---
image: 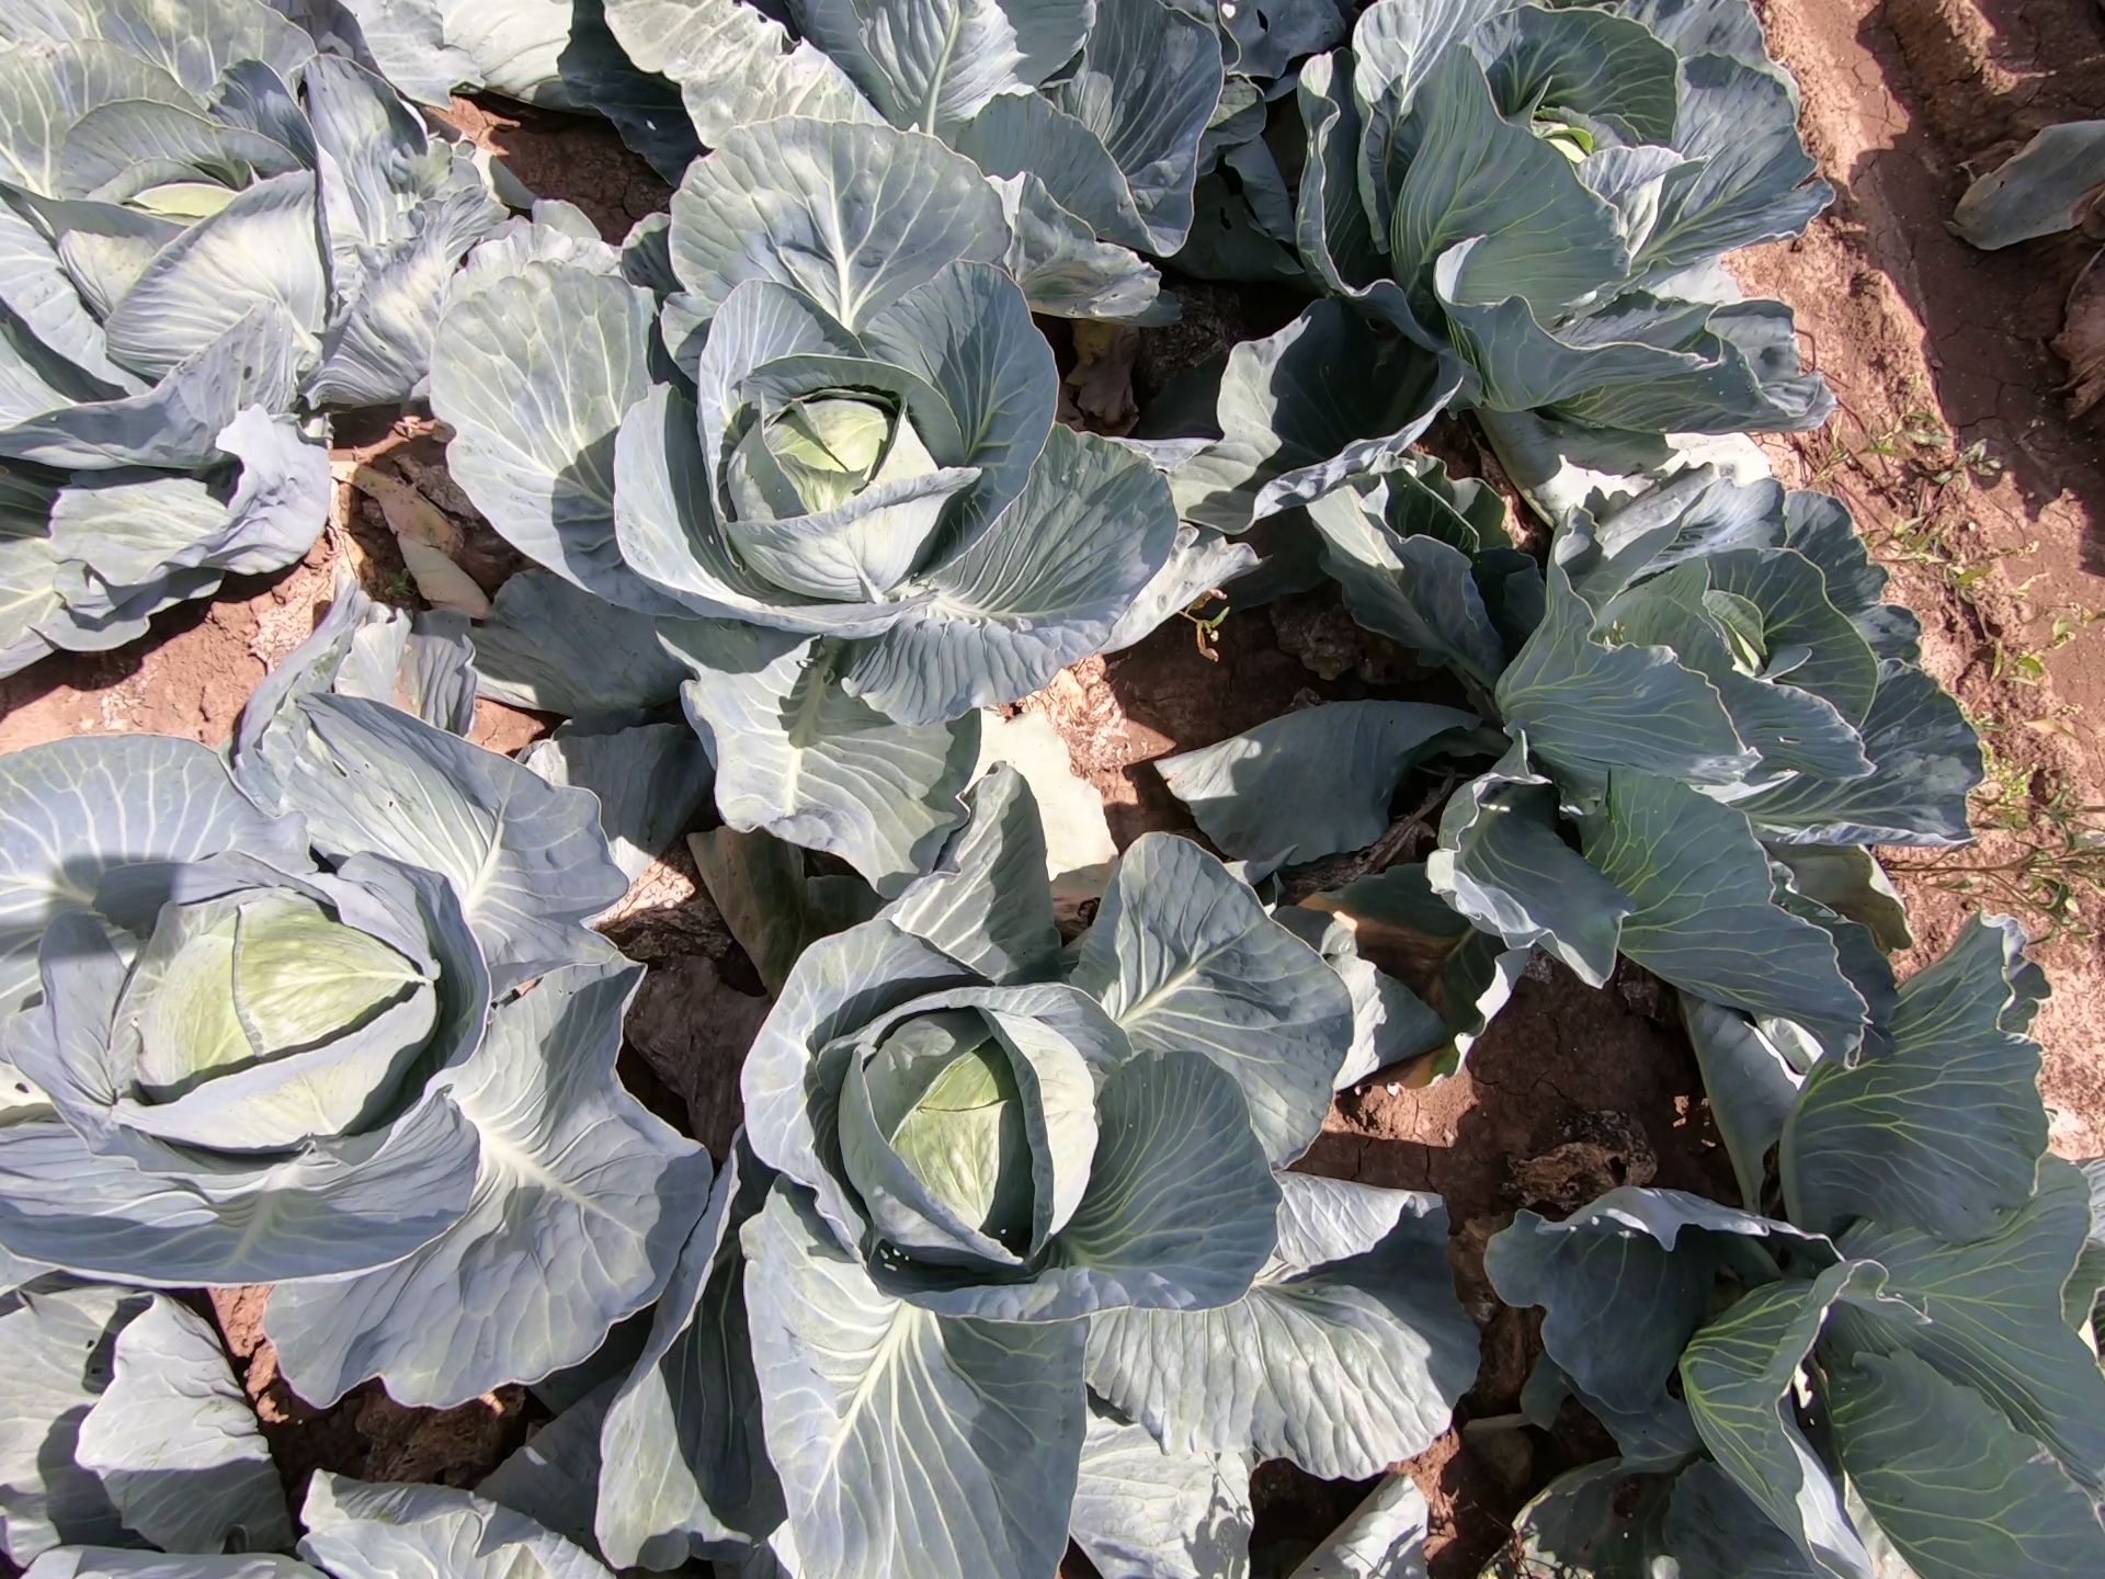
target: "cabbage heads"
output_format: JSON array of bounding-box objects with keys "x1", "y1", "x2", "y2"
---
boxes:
[
  {"x1": 730, "y1": 396, "x2": 945, "y2": 590},
  {"x1": 68, "y1": 183, "x2": 296, "y2": 373},
  {"x1": 1443, "y1": 118, "x2": 1620, "y2": 297},
  {"x1": 1613, "y1": 607, "x2": 1776, "y2": 745},
  {"x1": 128, "y1": 885, "x2": 434, "y2": 1150},
  {"x1": 842, "y1": 1007, "x2": 1096, "y2": 1261}
]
